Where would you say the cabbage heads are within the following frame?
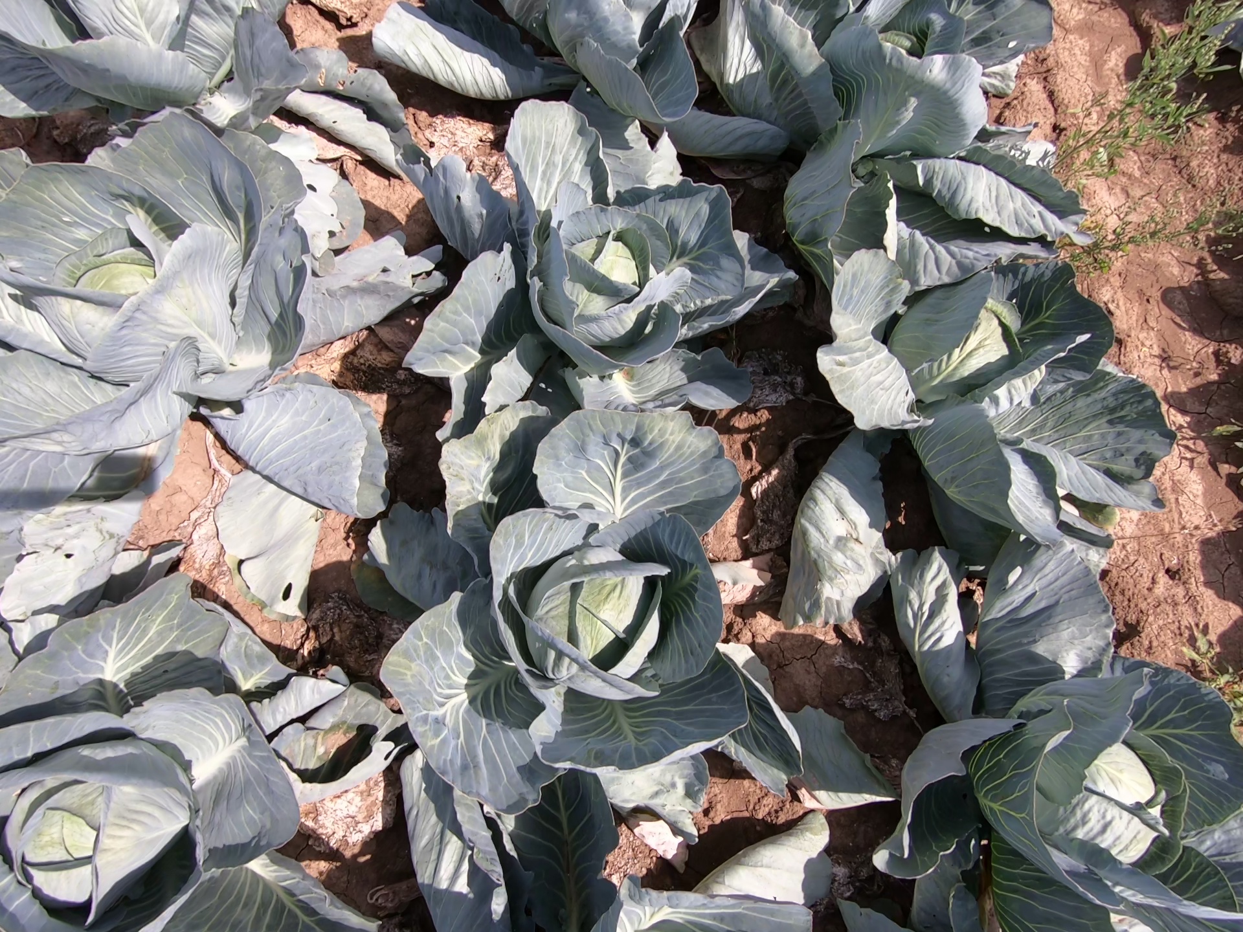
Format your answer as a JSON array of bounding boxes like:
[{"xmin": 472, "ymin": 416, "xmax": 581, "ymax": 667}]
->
[
  {"xmin": 896, "ymin": 291, "xmax": 1027, "ymax": 410},
  {"xmin": 60, "ymin": 242, "xmax": 221, "ymax": 373},
  {"xmin": 76, "ymin": 0, "xmax": 236, "ymax": 77},
  {"xmin": 552, "ymin": 0, "xmax": 688, "ymax": 73},
  {"xmin": 1014, "ymin": 716, "xmax": 1164, "ymax": 876},
  {"xmin": 836, "ymin": 34, "xmax": 935, "ymax": 150},
  {"xmin": 12, "ymin": 750, "xmax": 190, "ymax": 908},
  {"xmin": 547, "ymin": 235, "xmax": 647, "ymax": 348},
  {"xmin": 528, "ymin": 553, "xmax": 662, "ymax": 689}
]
